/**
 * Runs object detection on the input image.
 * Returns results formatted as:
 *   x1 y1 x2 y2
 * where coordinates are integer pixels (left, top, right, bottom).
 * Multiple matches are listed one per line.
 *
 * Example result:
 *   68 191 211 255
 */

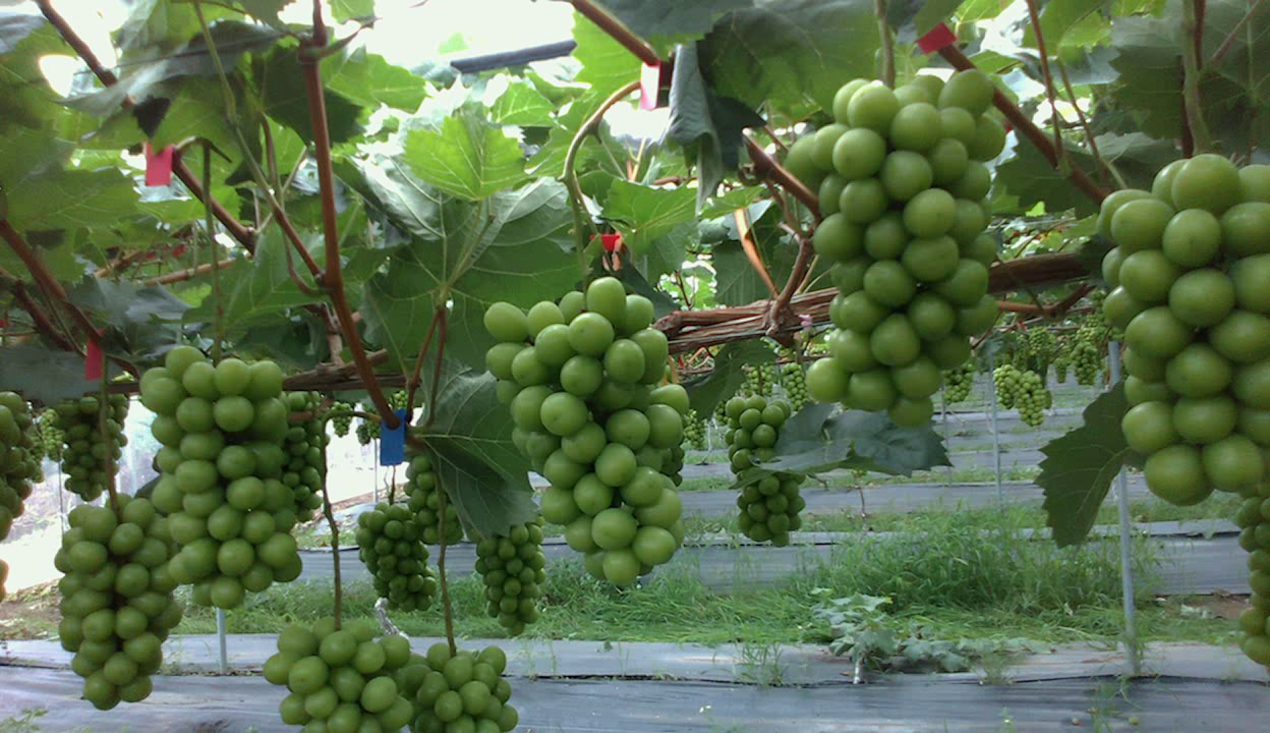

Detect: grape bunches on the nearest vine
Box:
804 67 1005 431
139 346 302 610
265 617 413 732
55 492 185 711
392 643 519 732
483 277 690 586
1097 153 1269 506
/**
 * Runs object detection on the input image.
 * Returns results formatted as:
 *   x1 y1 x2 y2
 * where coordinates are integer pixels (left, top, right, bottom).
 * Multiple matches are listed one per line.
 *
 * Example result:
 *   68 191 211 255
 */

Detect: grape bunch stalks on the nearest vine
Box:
437 478 456 657
319 410 370 629
178 136 231 361
875 0 894 87
100 356 122 522
1180 1 1212 154
556 80 641 284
